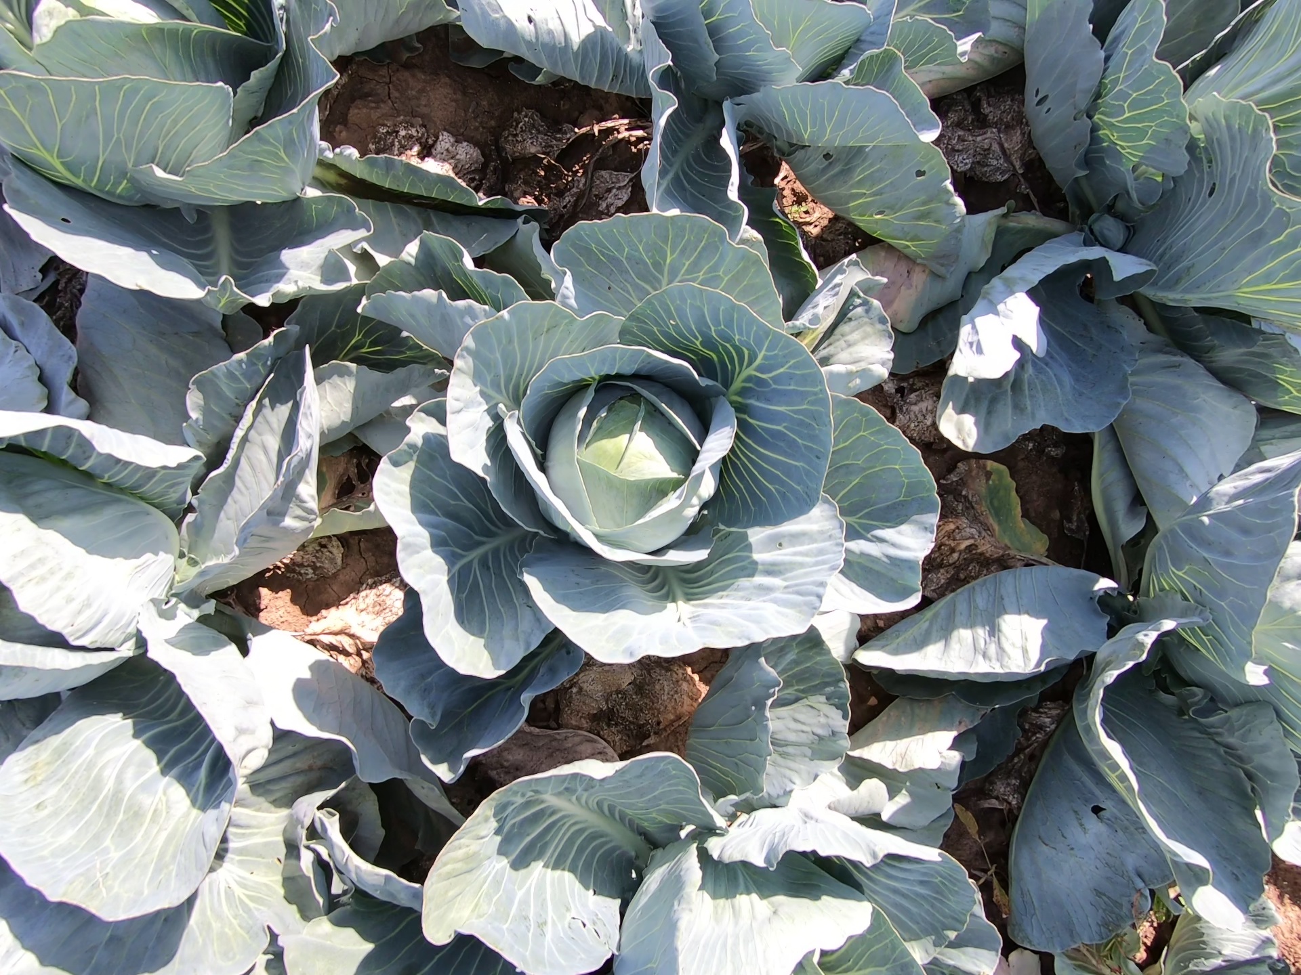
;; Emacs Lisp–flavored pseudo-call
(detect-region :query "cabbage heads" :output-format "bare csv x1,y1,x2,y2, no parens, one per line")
32,3,236,130
3,474,139,657
615,875,801,974
548,378,704,543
